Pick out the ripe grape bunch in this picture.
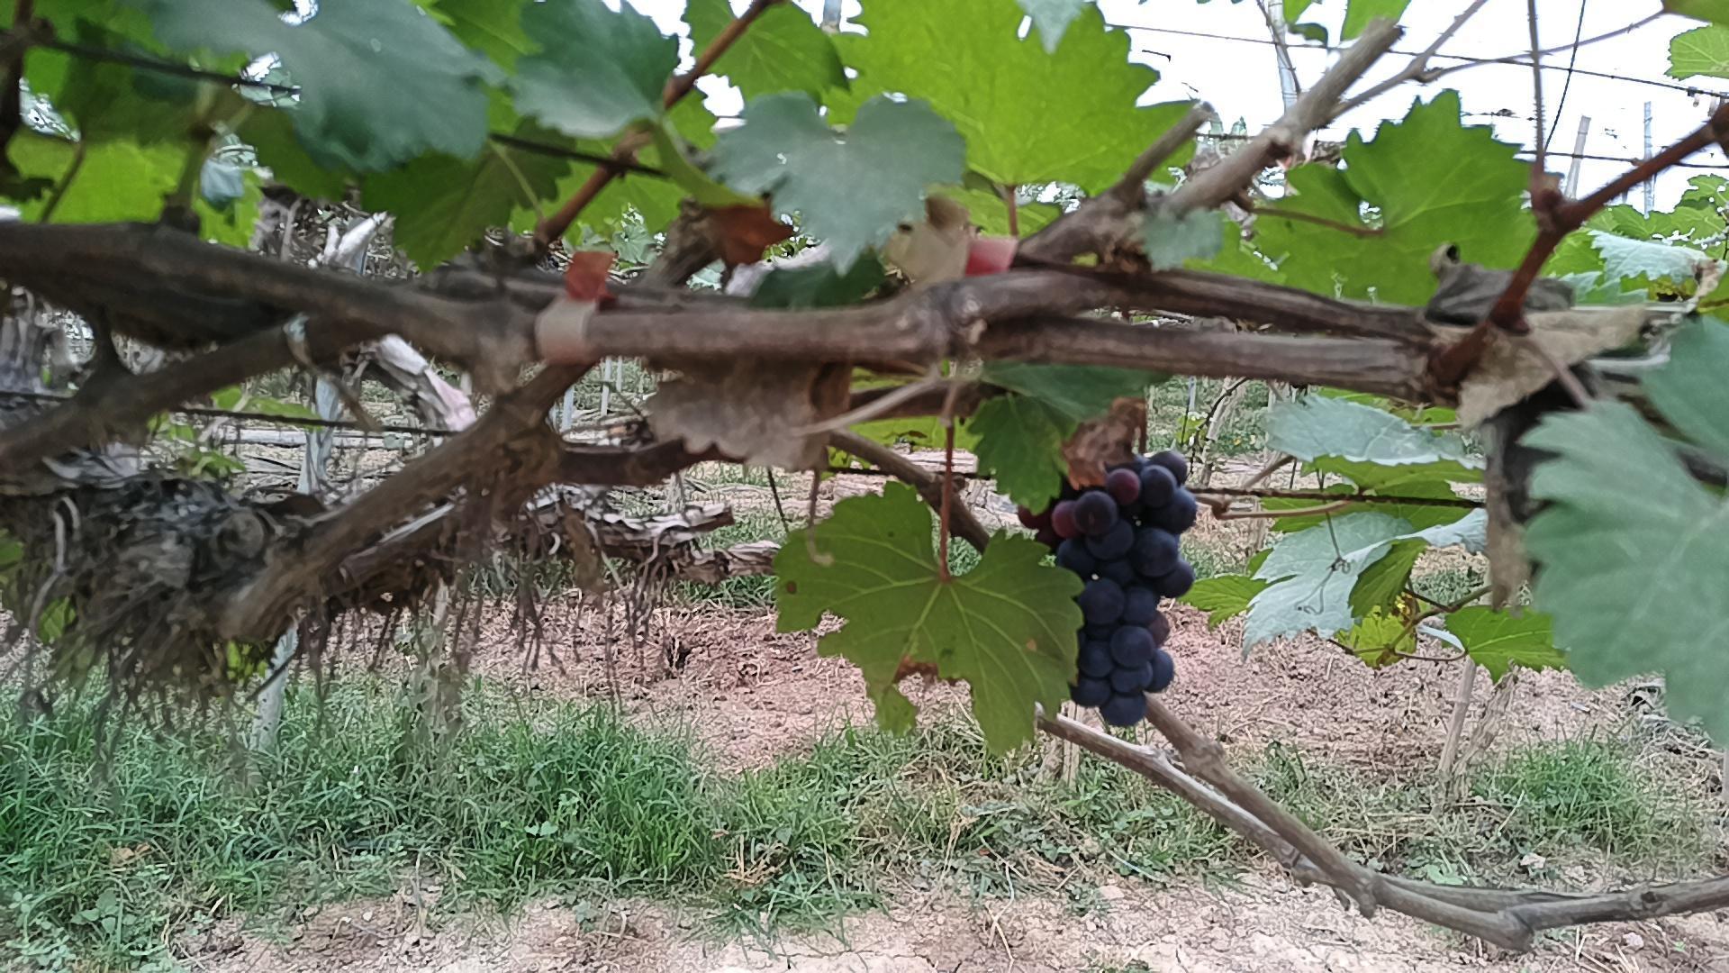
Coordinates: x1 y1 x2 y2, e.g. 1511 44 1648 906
1018 451 1199 726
